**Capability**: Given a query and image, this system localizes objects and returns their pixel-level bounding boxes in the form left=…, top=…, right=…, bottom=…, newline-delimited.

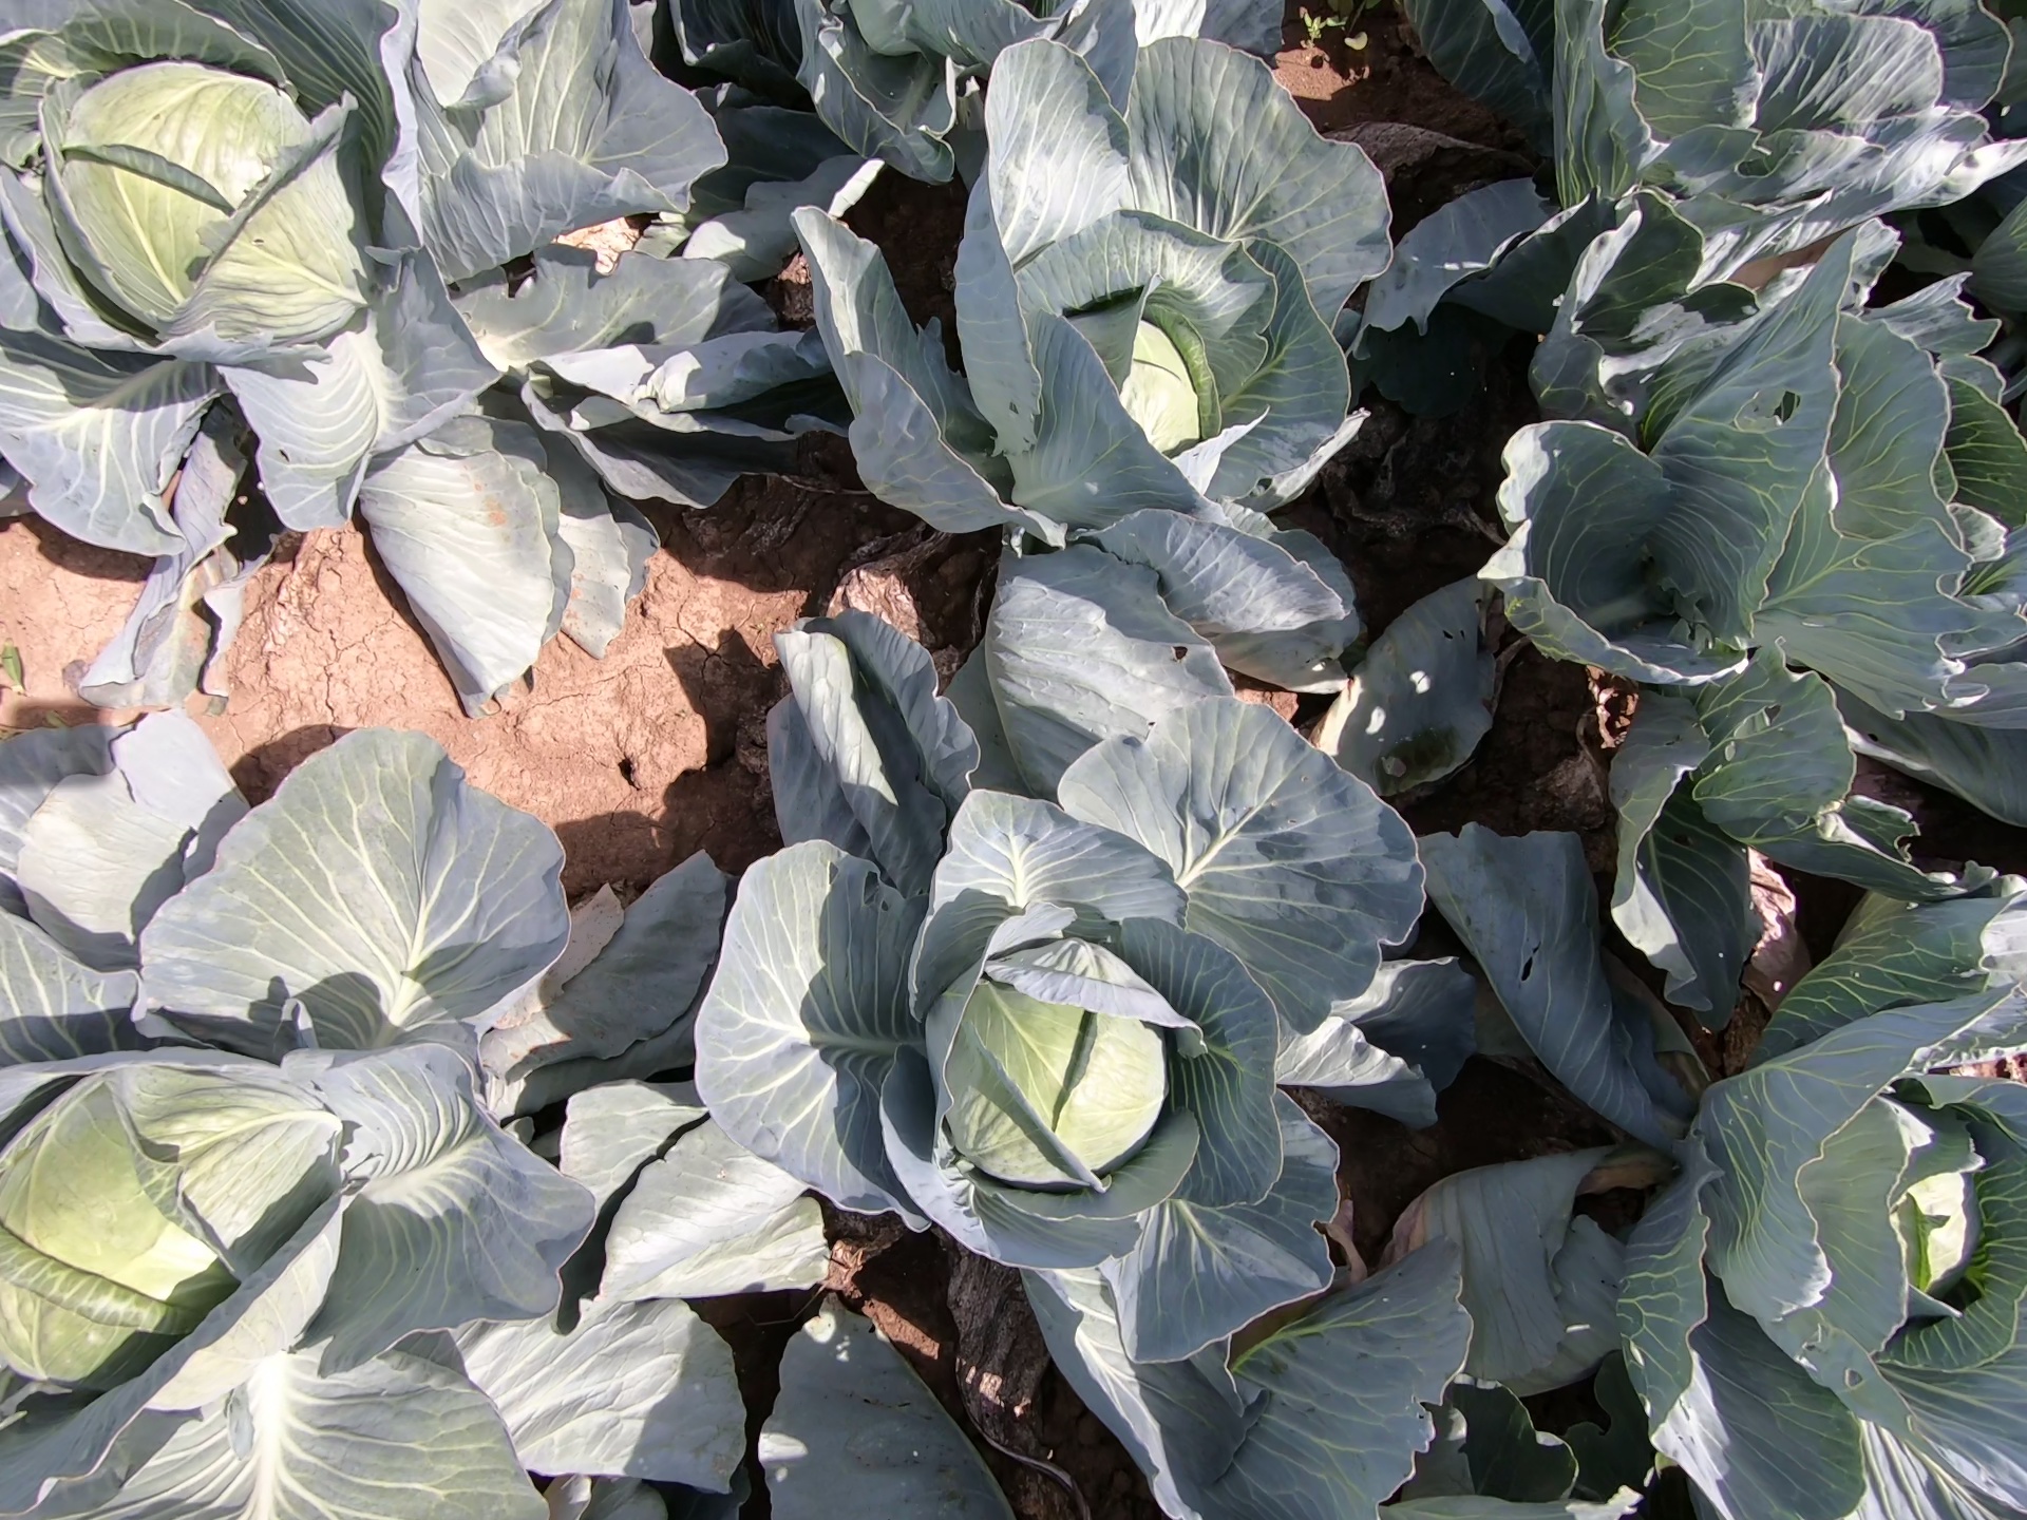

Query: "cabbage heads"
left=928, top=944, right=1175, bottom=1194
left=1034, top=311, right=1215, bottom=509
left=40, top=59, right=355, bottom=358
left=1789, top=1088, right=1984, bottom=1313
left=1, top=1051, right=351, bottom=1407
